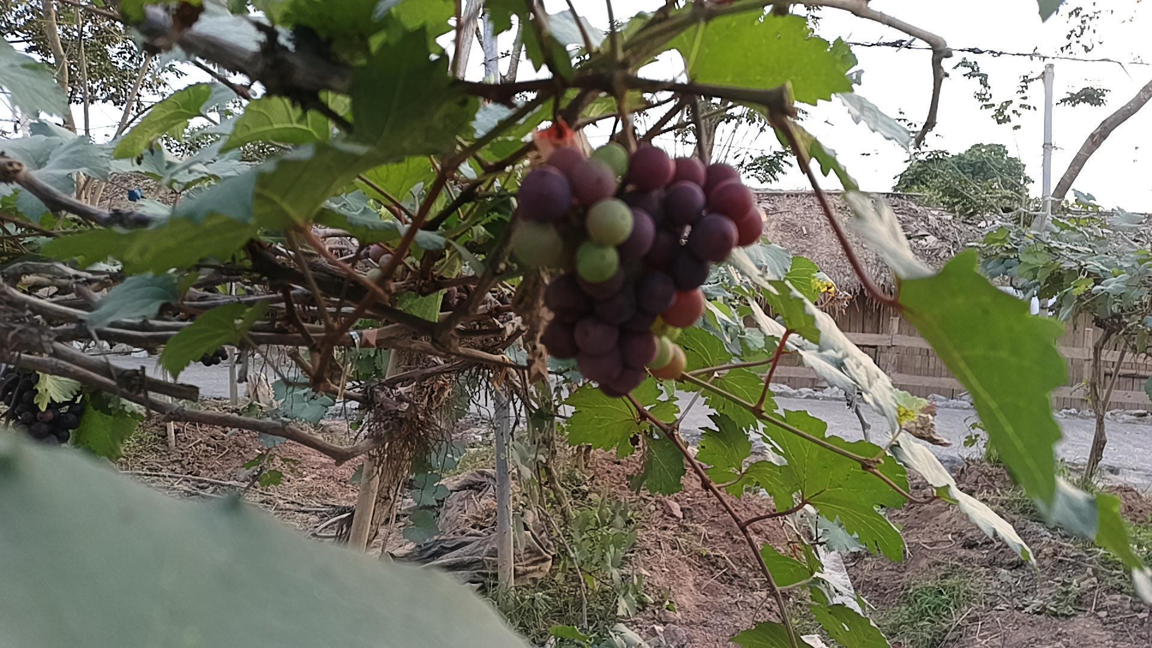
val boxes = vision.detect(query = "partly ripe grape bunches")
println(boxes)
[511,140,762,397]
[368,245,421,284]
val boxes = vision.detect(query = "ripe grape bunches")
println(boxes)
[0,367,85,443]
[197,346,228,366]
